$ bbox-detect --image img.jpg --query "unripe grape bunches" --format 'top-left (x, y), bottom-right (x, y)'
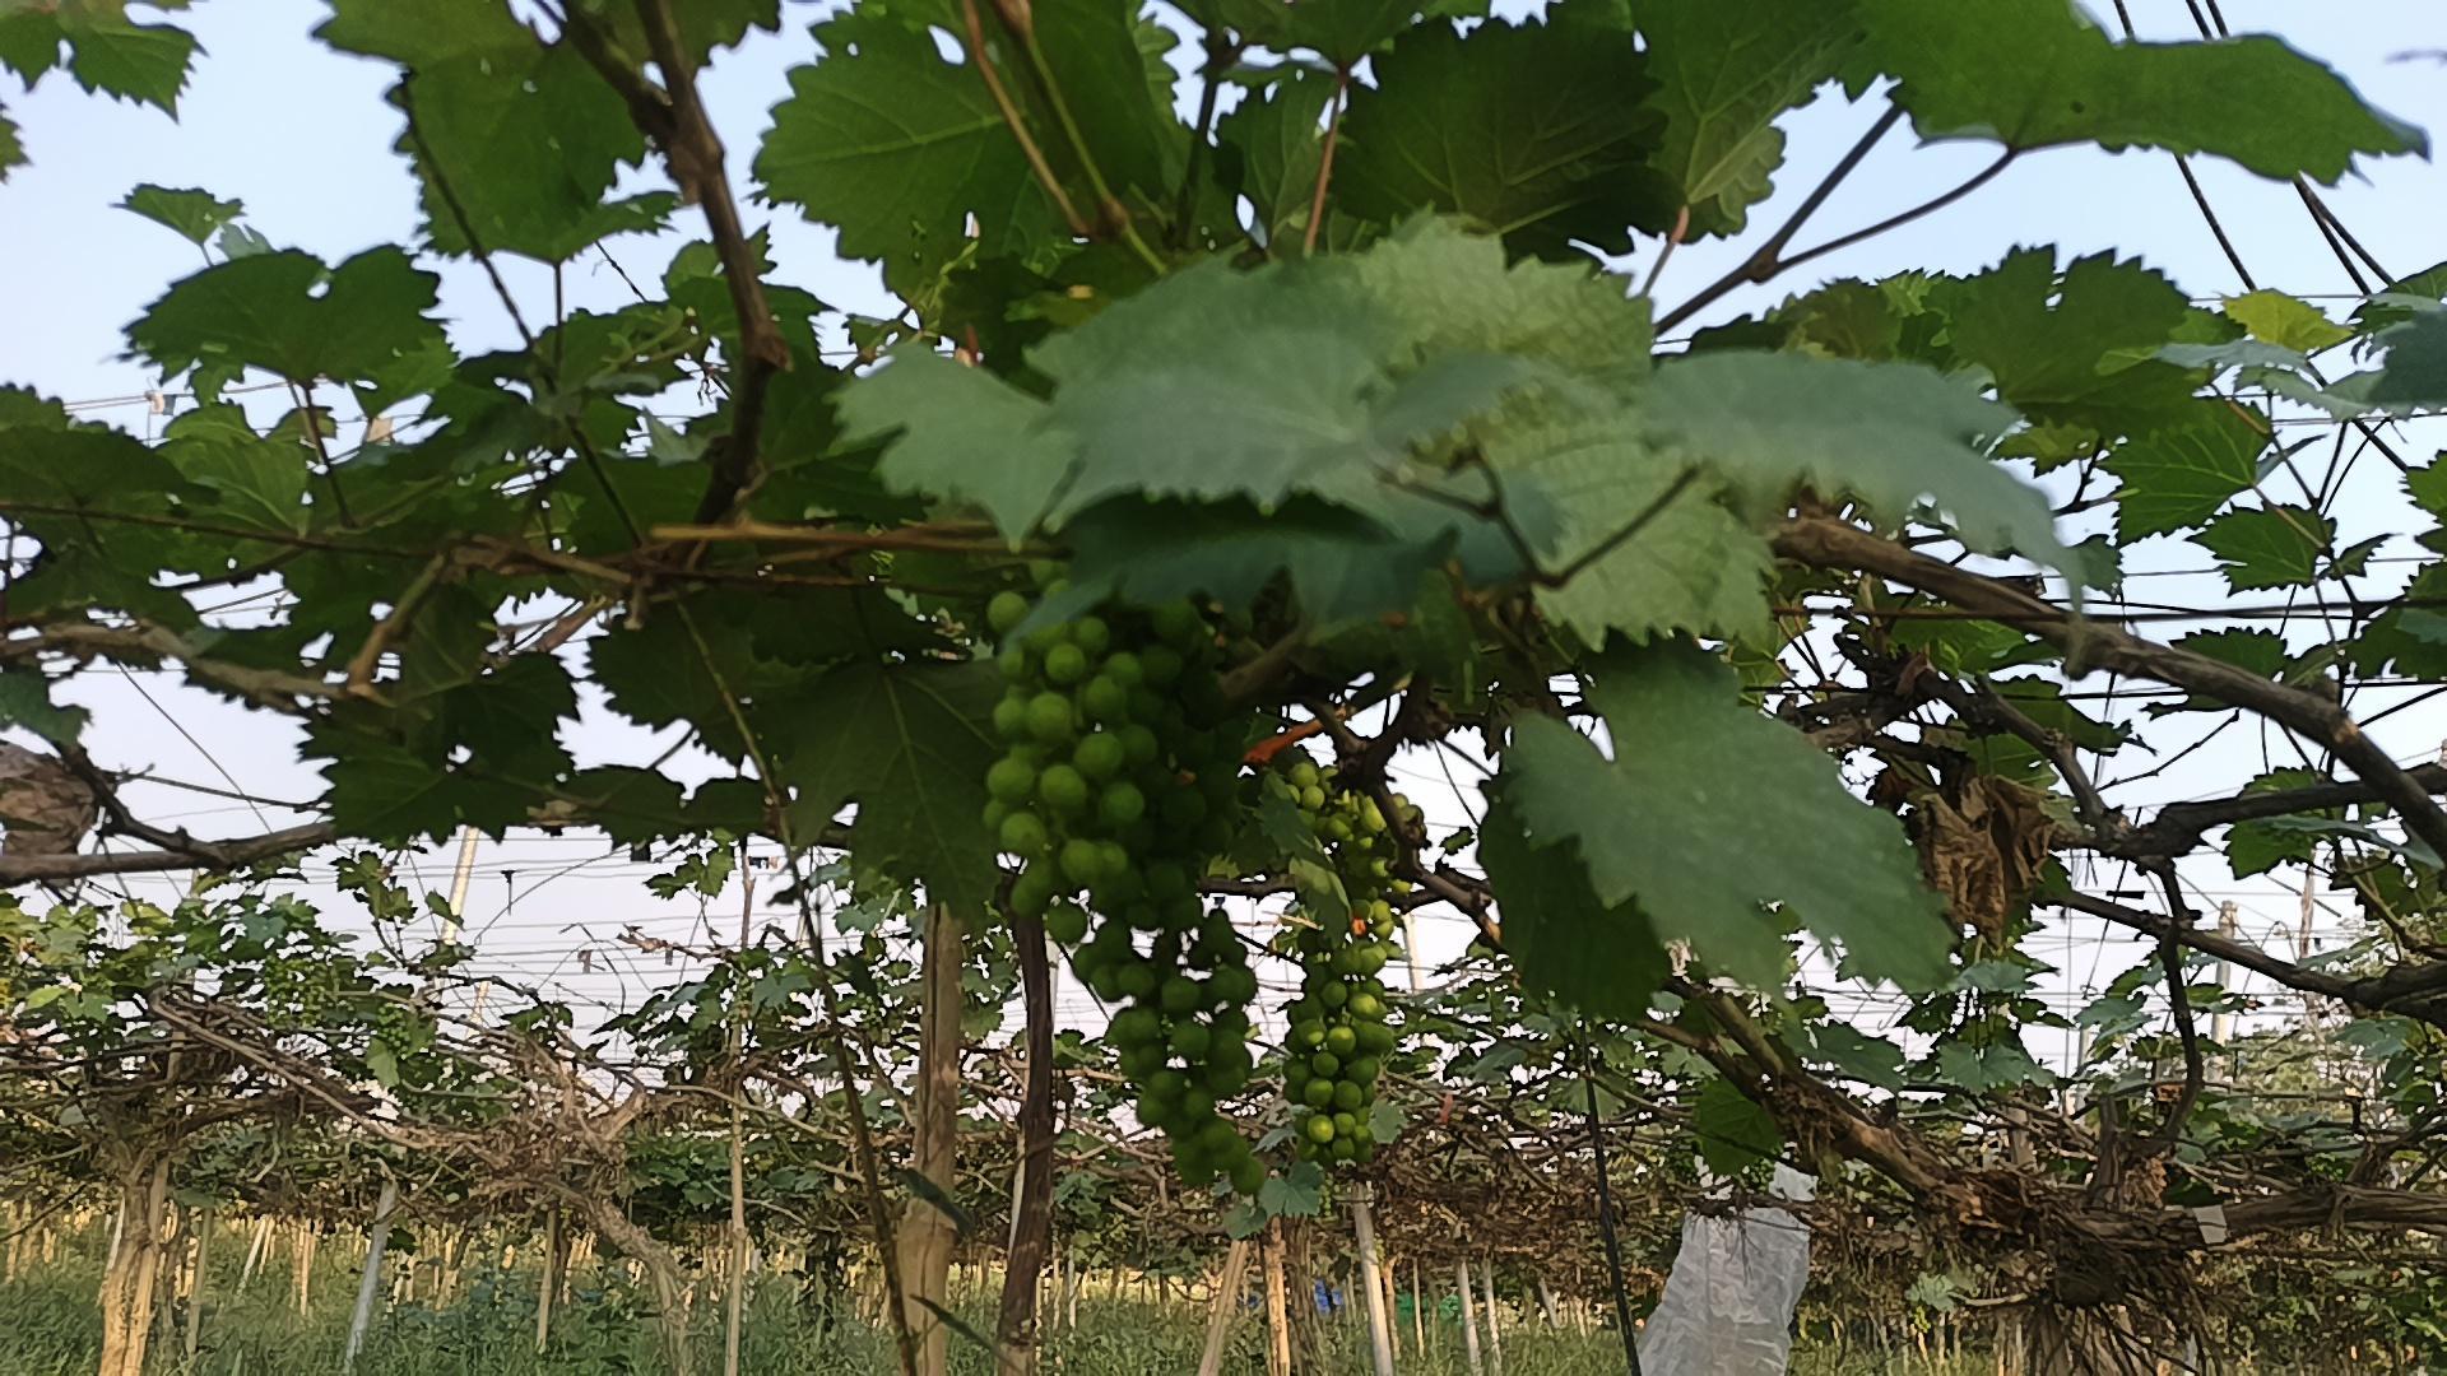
top-left (984, 557), bottom-right (1183, 940)
top-left (1081, 733), bottom-right (1268, 1190)
top-left (1285, 763), bottom-right (1427, 1159)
